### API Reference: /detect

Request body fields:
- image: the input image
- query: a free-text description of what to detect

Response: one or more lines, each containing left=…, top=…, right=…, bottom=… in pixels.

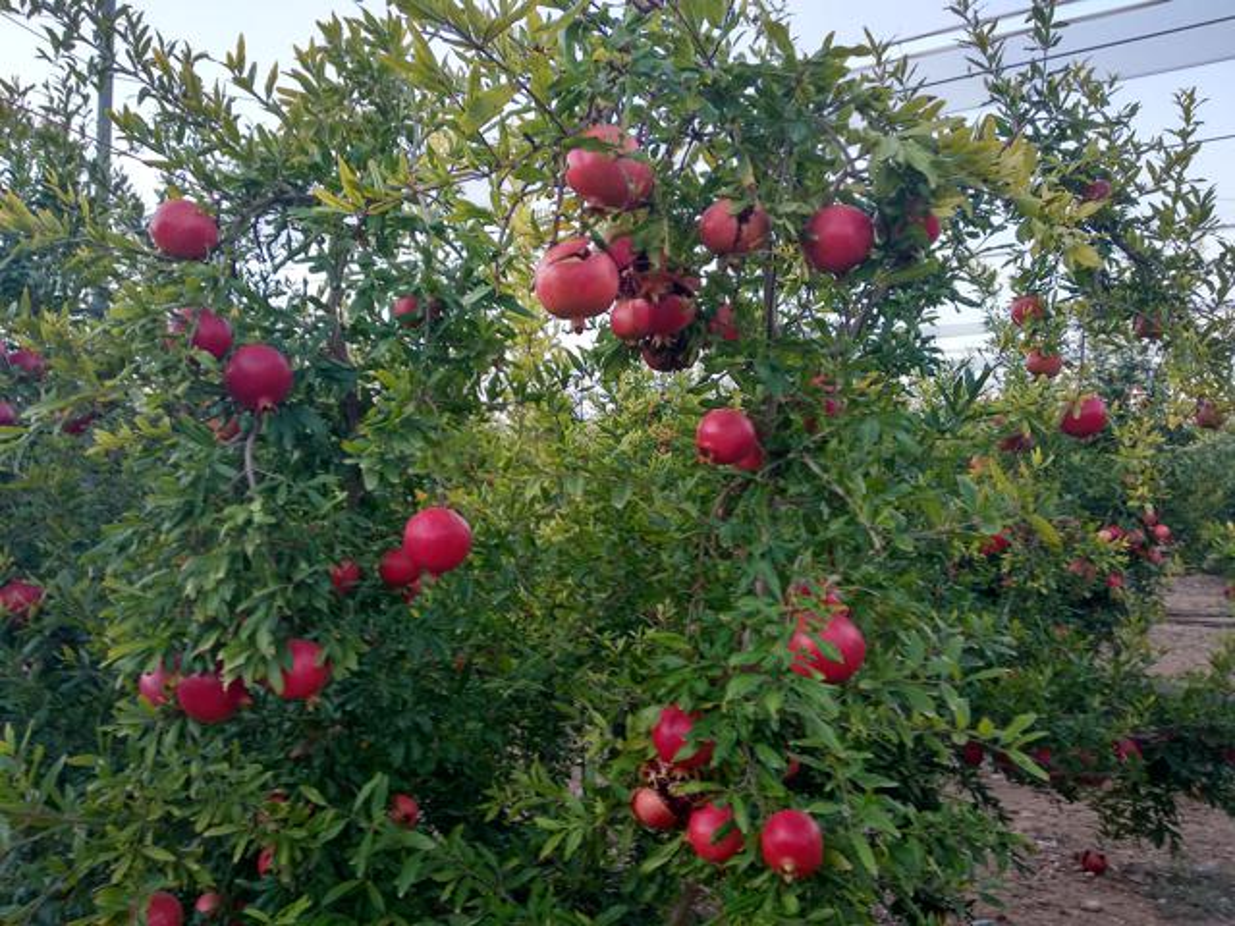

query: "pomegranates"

left=191, top=307, right=232, bottom=363
left=1061, top=397, right=1108, bottom=438
left=1133, top=311, right=1162, bottom=340
left=803, top=203, right=874, bottom=270
left=280, top=637, right=332, bottom=712
left=332, top=559, right=361, bottom=596
left=980, top=527, right=1013, bottom=558
left=0, top=399, right=15, bottom=426
left=695, top=407, right=756, bottom=467
left=533, top=237, right=619, bottom=334
left=178, top=664, right=253, bottom=723
left=137, top=660, right=172, bottom=708
left=563, top=125, right=652, bottom=218
left=380, top=550, right=421, bottom=588
left=608, top=297, right=652, bottom=349
left=0, top=577, right=42, bottom=617
left=1011, top=295, right=1044, bottom=328
left=1081, top=177, right=1111, bottom=203
left=257, top=843, right=274, bottom=878
left=699, top=197, right=772, bottom=257
left=401, top=505, right=473, bottom=575
left=392, top=295, right=421, bottom=318
left=195, top=893, right=251, bottom=926
left=1025, top=347, right=1063, bottom=382
left=646, top=291, right=697, bottom=353
left=758, top=808, right=826, bottom=885
left=631, top=783, right=687, bottom=831
left=604, top=237, right=639, bottom=272
left=1196, top=403, right=1214, bottom=426
left=646, top=702, right=716, bottom=781
left=149, top=197, right=220, bottom=260
left=147, top=891, right=185, bottom=926
left=922, top=212, right=942, bottom=245
left=224, top=343, right=293, bottom=415
left=388, top=793, right=421, bottom=830
left=685, top=801, right=743, bottom=864
left=737, top=432, right=762, bottom=471
left=963, top=743, right=984, bottom=766
left=787, top=613, right=868, bottom=687
left=710, top=305, right=739, bottom=341
left=8, top=353, right=44, bottom=376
